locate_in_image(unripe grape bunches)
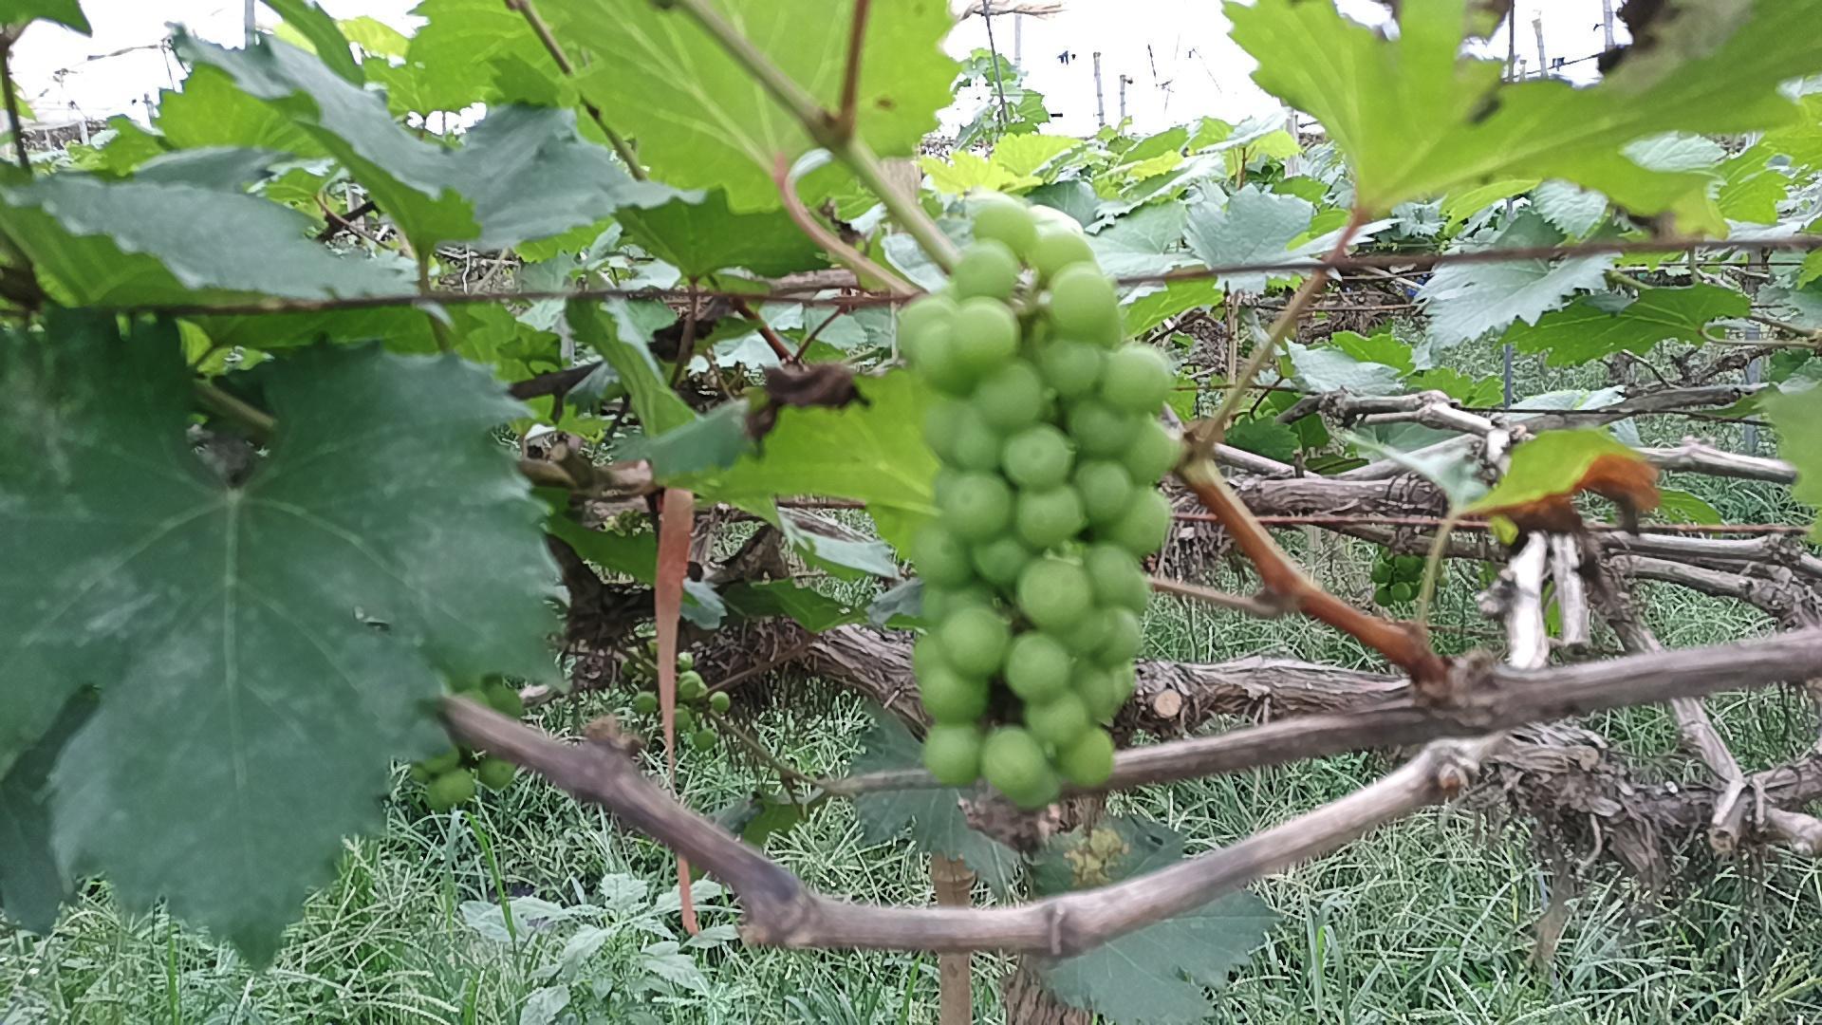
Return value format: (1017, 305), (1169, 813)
(631, 659), (731, 750)
(900, 192), (1182, 806)
(1371, 547), (1449, 606)
(413, 680), (523, 811)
